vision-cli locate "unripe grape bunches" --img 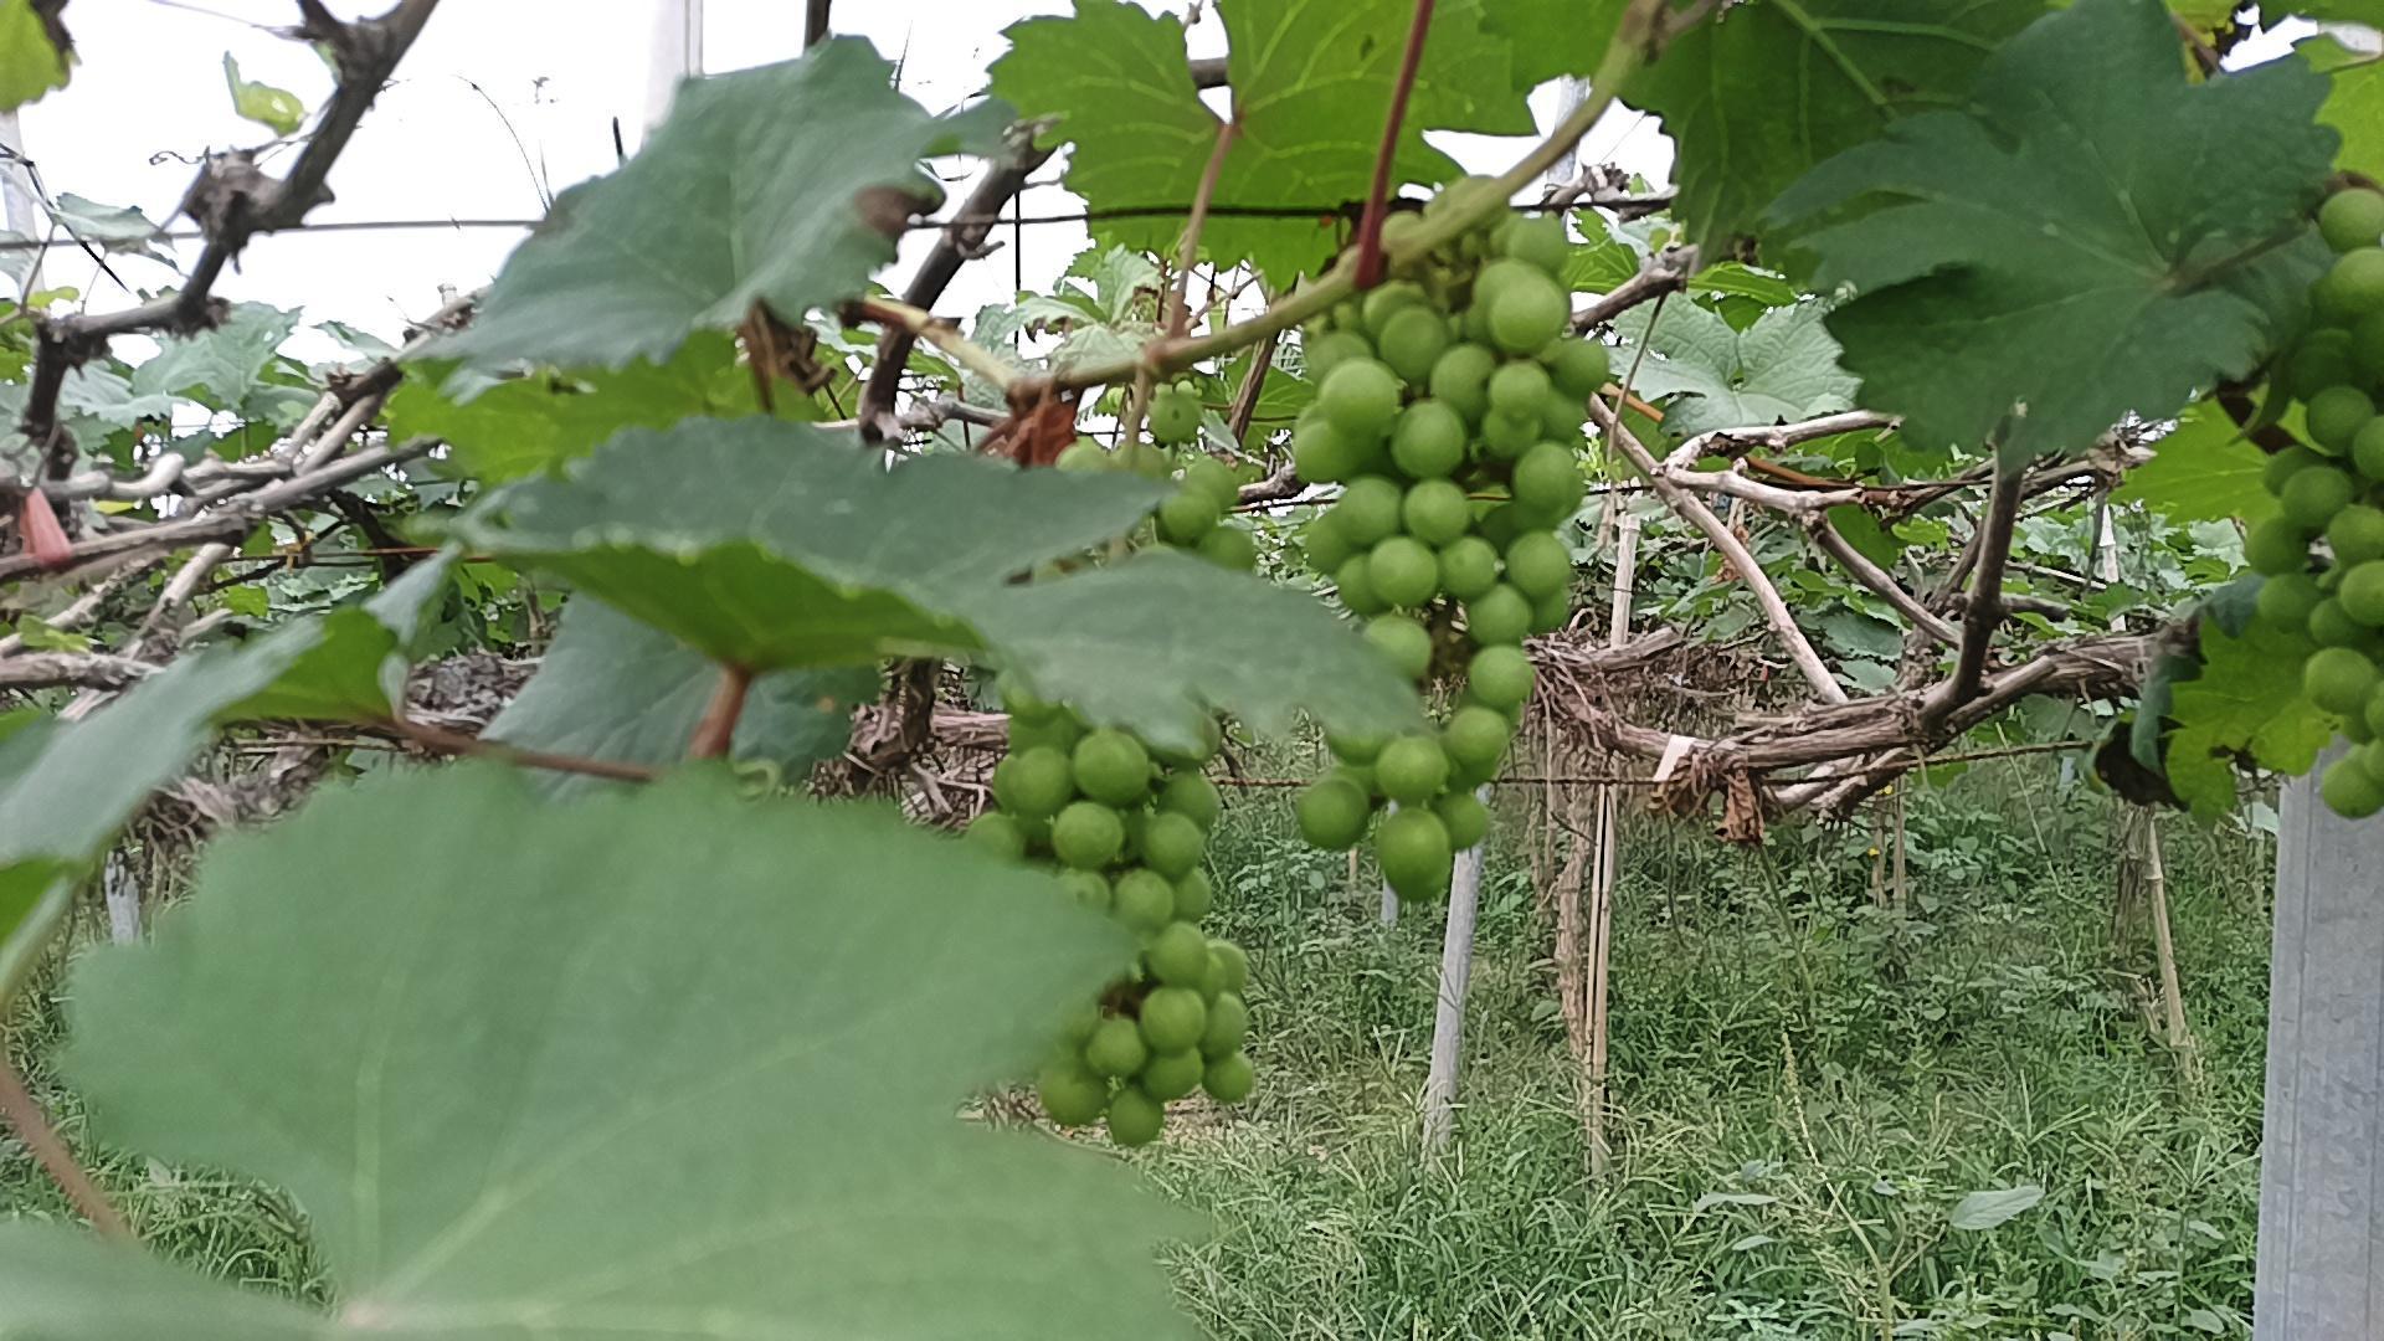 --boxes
[1293,178,1609,899]
[965,382,1257,1146]
[2247,187,2383,817]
